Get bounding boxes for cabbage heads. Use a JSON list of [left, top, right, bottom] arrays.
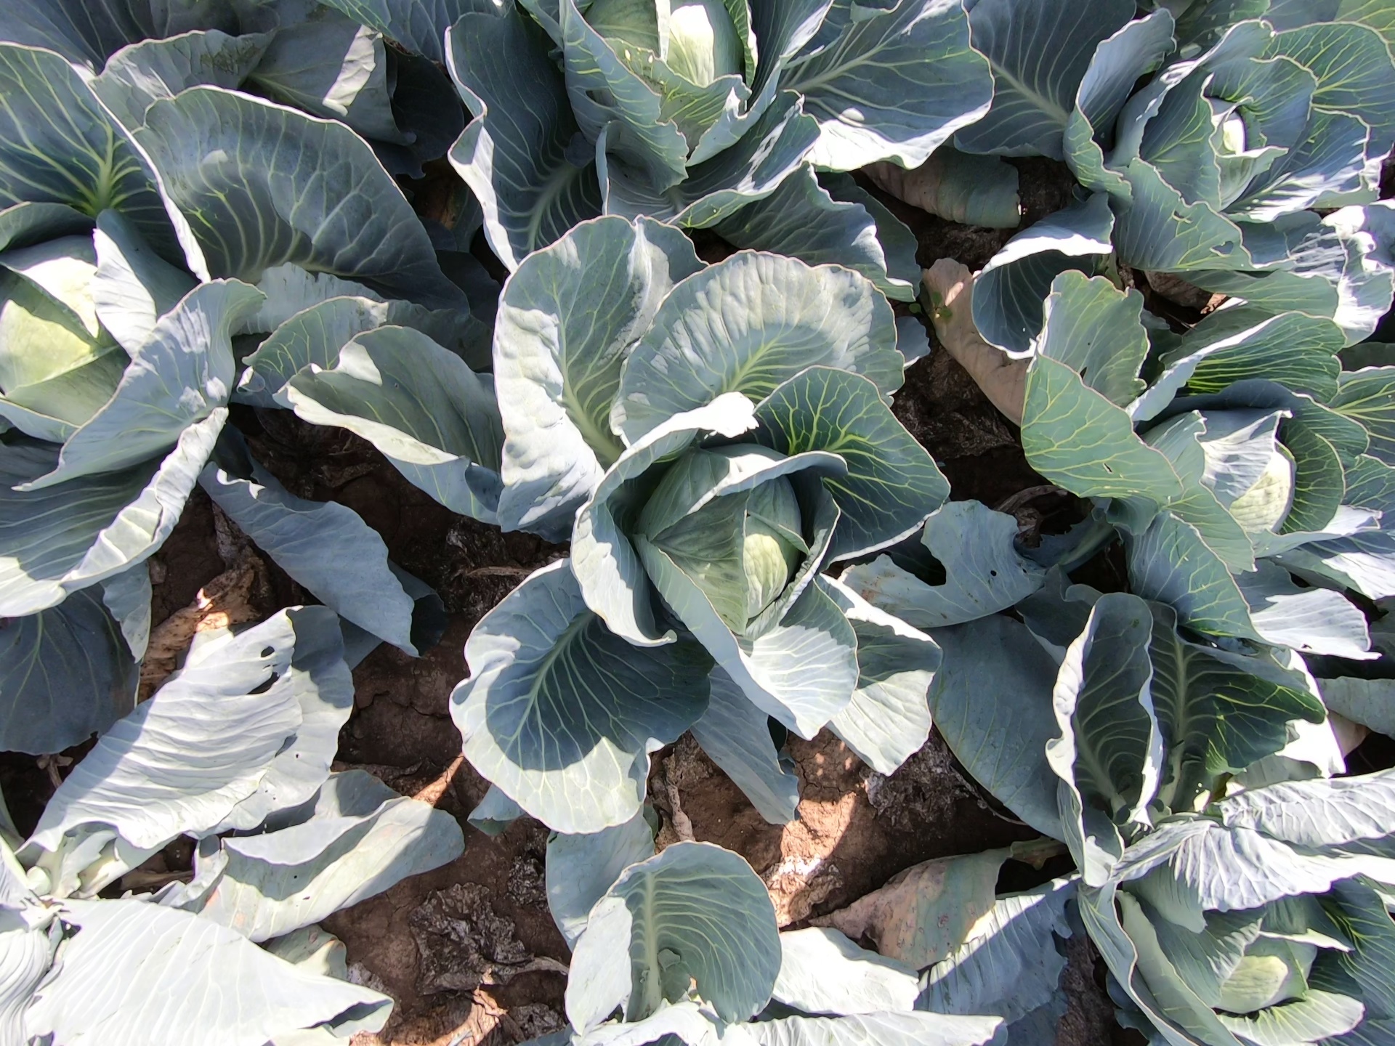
[[650, 446, 801, 616], [1153, 840, 1317, 1013], [1157, 415, 1293, 564], [592, 2, 742, 134], [1159, 94, 1254, 213], [2, 234, 179, 437]]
